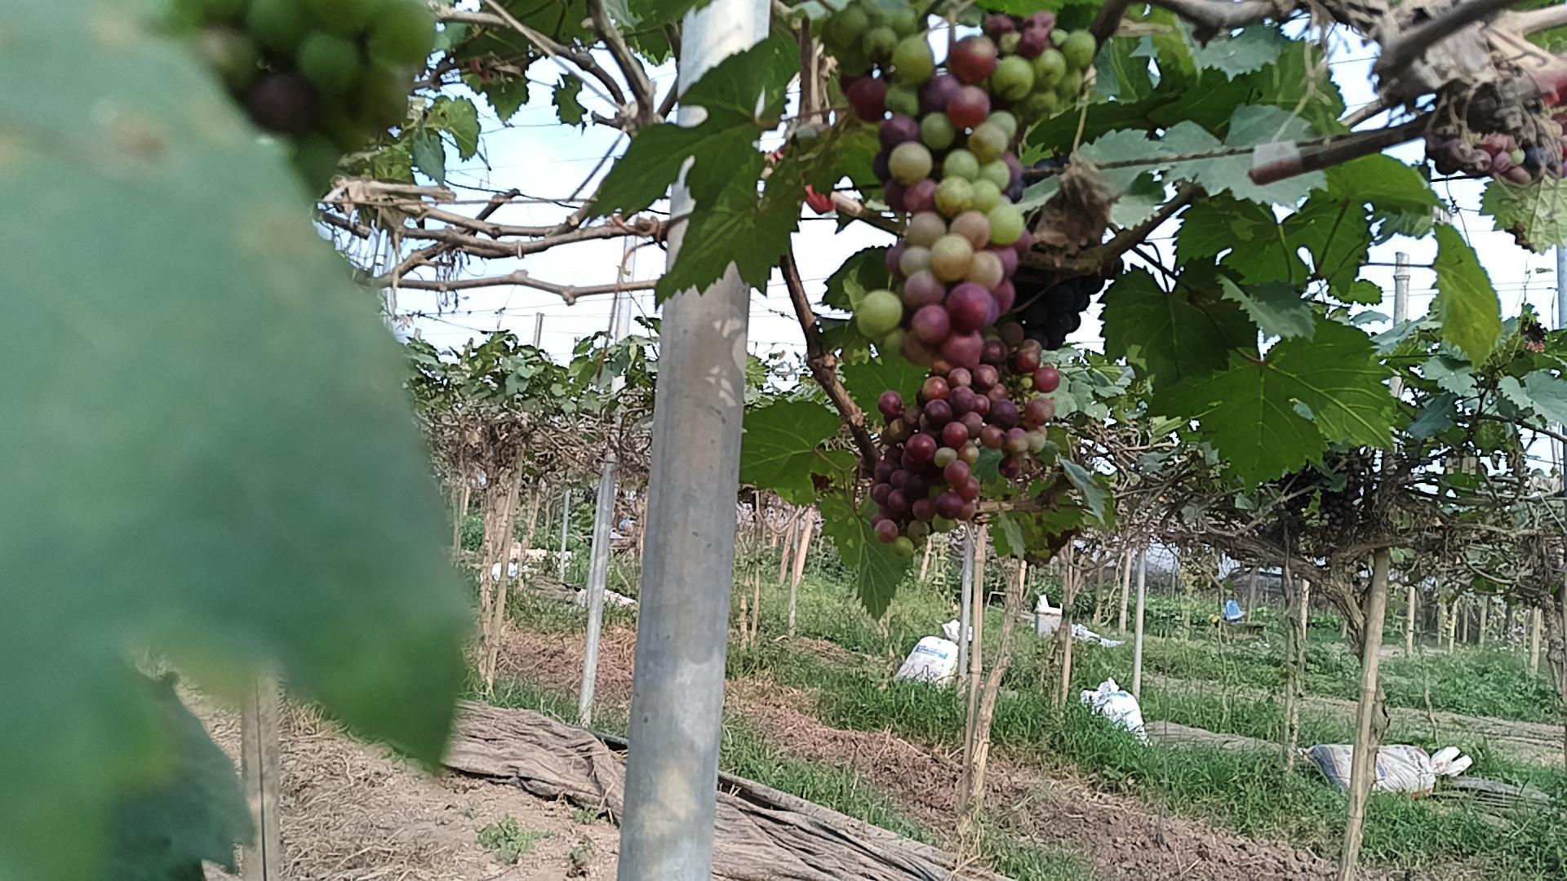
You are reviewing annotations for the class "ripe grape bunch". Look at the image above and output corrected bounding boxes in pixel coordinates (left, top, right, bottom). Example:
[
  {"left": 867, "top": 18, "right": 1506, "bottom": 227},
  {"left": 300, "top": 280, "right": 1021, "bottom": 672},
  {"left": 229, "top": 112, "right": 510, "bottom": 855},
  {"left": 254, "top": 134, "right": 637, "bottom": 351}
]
[{"left": 1008, "top": 259, "right": 1123, "bottom": 349}]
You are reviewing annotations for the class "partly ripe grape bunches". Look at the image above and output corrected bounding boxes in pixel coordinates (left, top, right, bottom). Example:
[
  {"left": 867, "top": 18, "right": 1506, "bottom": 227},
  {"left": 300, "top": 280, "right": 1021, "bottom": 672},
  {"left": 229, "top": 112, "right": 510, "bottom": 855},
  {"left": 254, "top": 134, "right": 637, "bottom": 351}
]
[
  {"left": 823, "top": 0, "right": 1097, "bottom": 365},
  {"left": 166, "top": 0, "right": 435, "bottom": 192},
  {"left": 1321, "top": 458, "right": 1363, "bottom": 532},
  {"left": 869, "top": 322, "right": 1059, "bottom": 553},
  {"left": 1425, "top": 56, "right": 1566, "bottom": 184}
]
